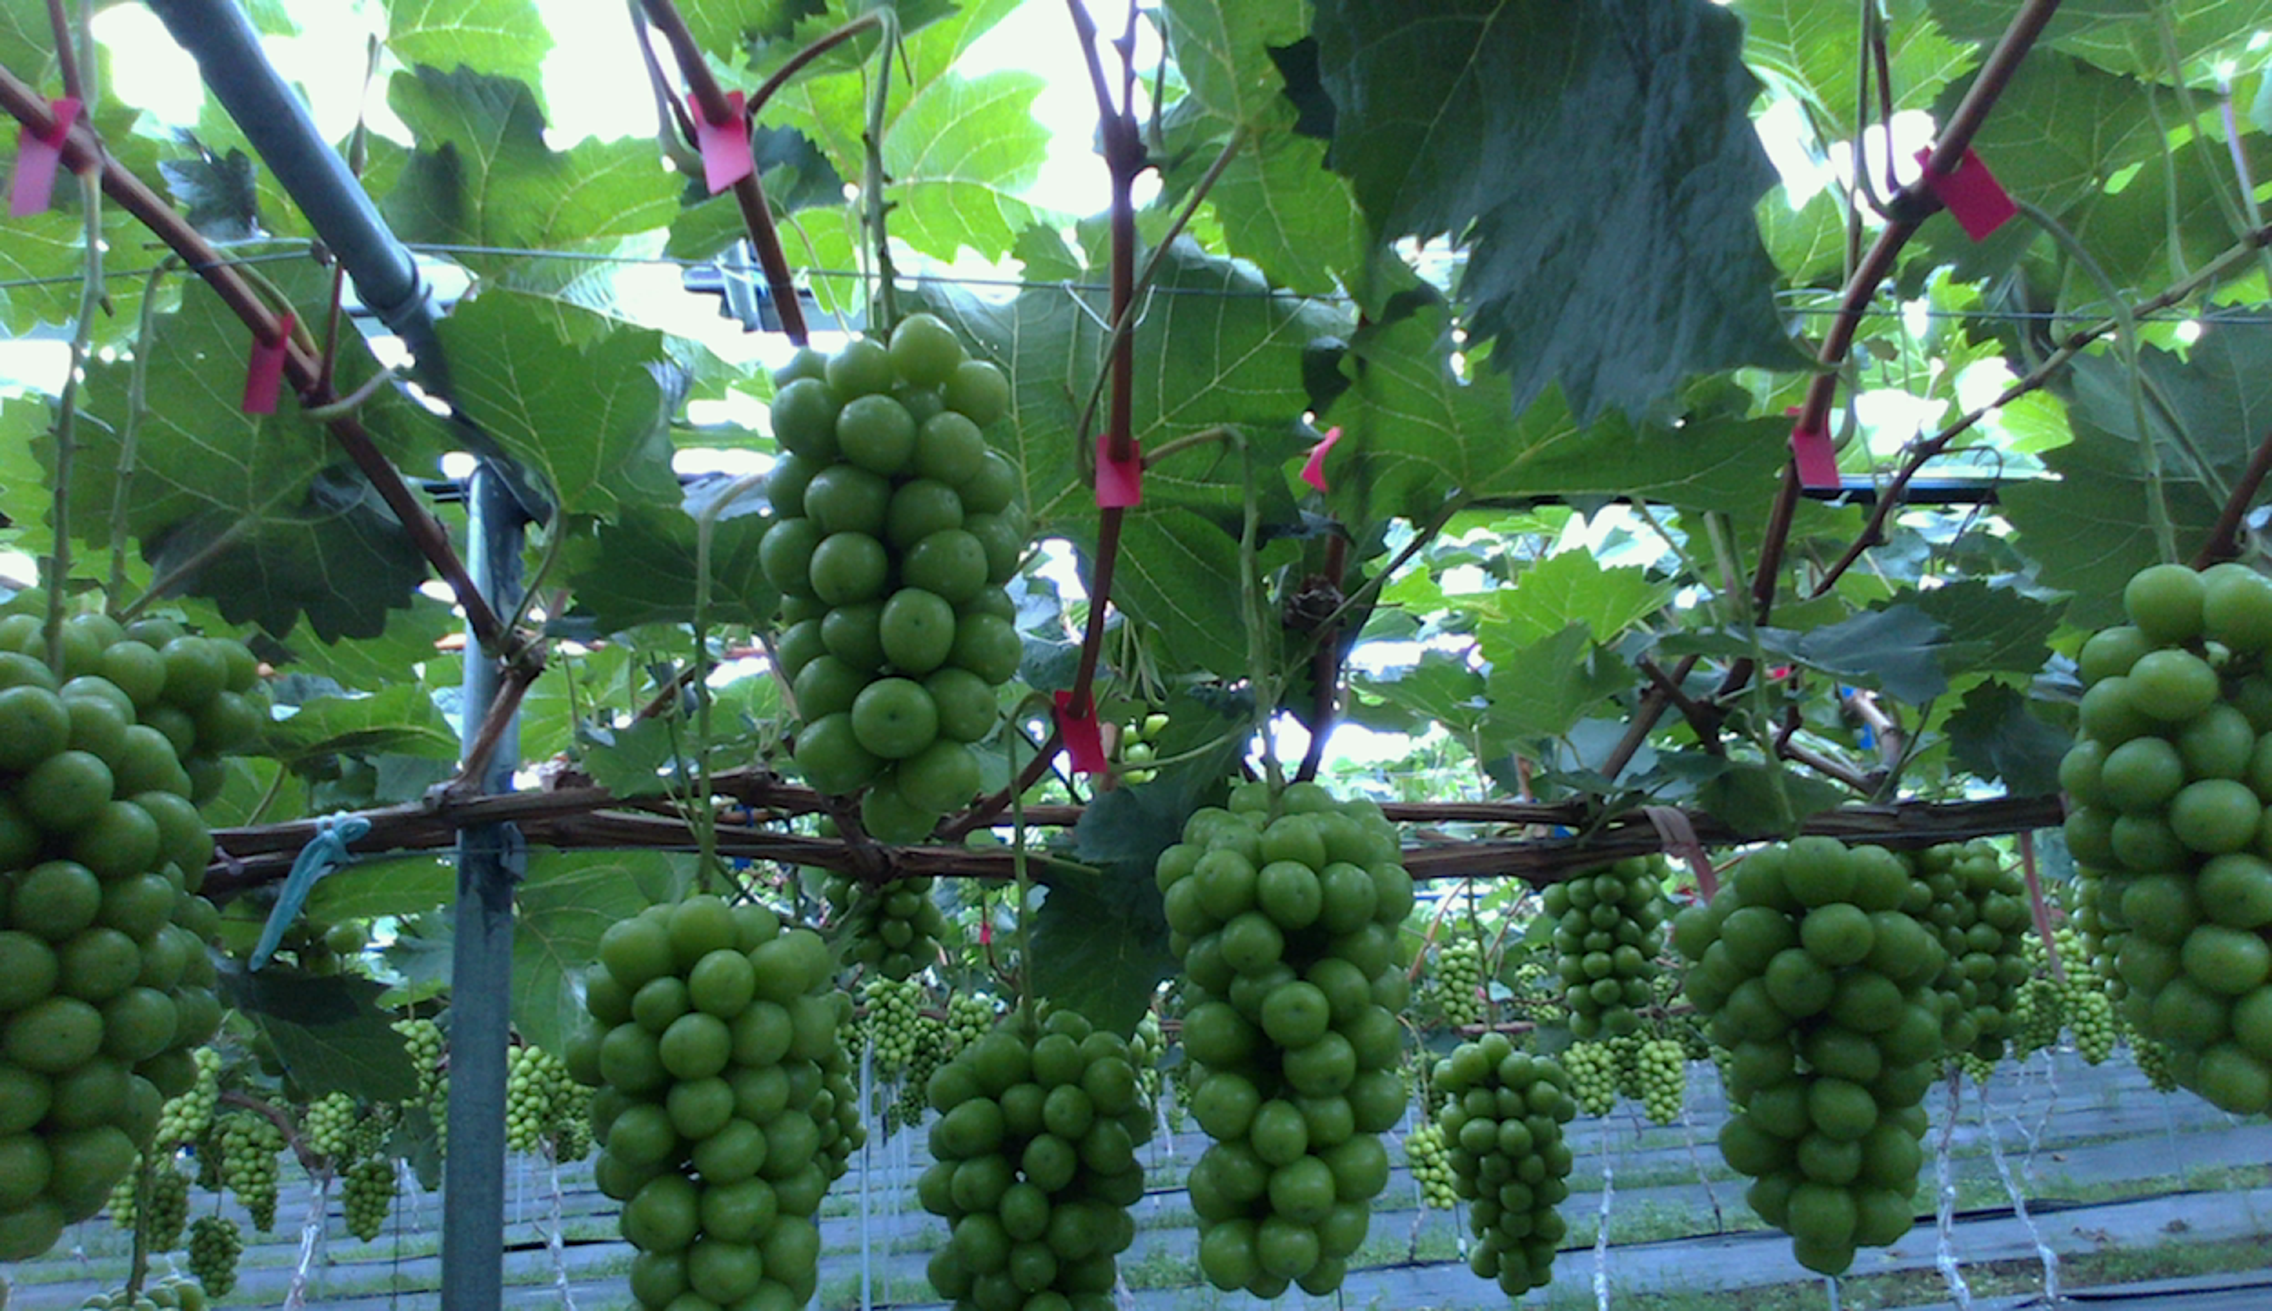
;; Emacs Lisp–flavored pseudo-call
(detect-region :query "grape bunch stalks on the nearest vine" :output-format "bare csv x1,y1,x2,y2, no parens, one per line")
38,178,109,670
752,7,898,342
1726,512,1799,838
1003,690,1050,1040
102,257,177,614
2013,198,2177,564
1145,424,1287,819
688,473,763,892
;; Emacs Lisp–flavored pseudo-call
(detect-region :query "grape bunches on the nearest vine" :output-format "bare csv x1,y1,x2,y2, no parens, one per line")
1668,834,1944,1275
1154,785,1415,1302
564,899,845,1309
750,311,1030,850
2057,561,2270,1114
0,652,222,1264
66,612,275,803
918,1012,1160,1309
